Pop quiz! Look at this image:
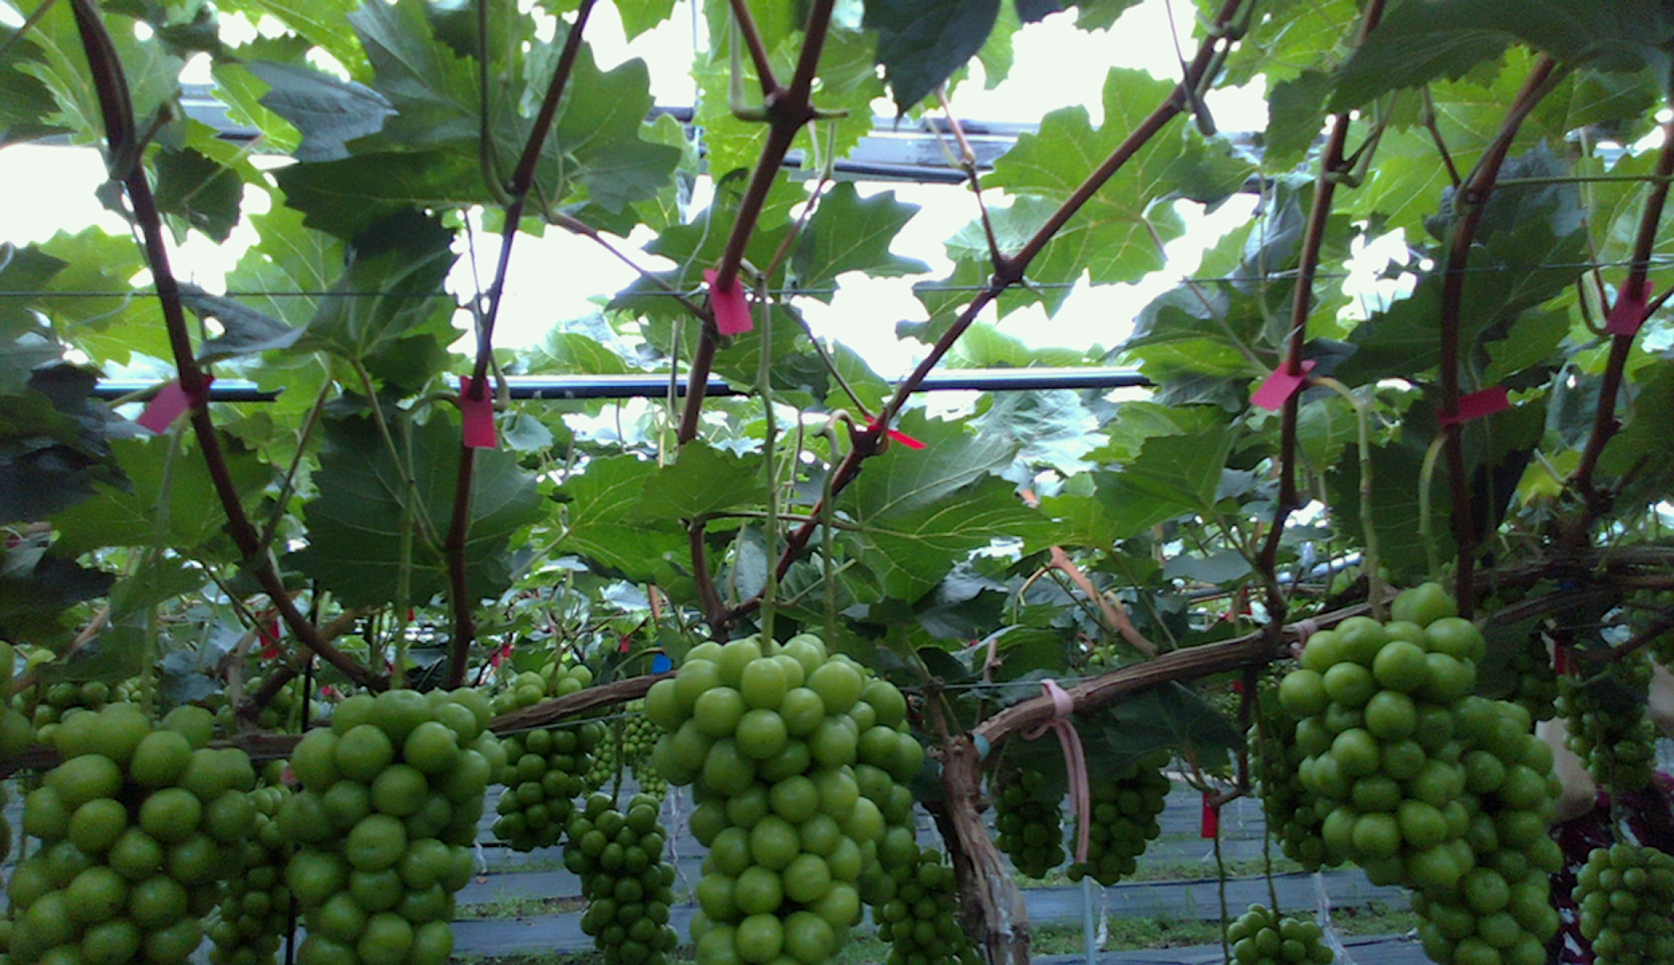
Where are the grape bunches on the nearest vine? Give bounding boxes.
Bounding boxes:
[1280,584,1485,891]
[836,654,924,906]
[1406,696,1563,964]
[7,702,256,964]
[278,688,510,964]
[643,633,881,964]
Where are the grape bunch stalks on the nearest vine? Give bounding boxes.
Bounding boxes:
[740,260,781,654]
[1313,378,1383,623]
[810,409,860,653]
[139,406,196,717]
[1415,442,1442,580]
[393,394,436,686]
